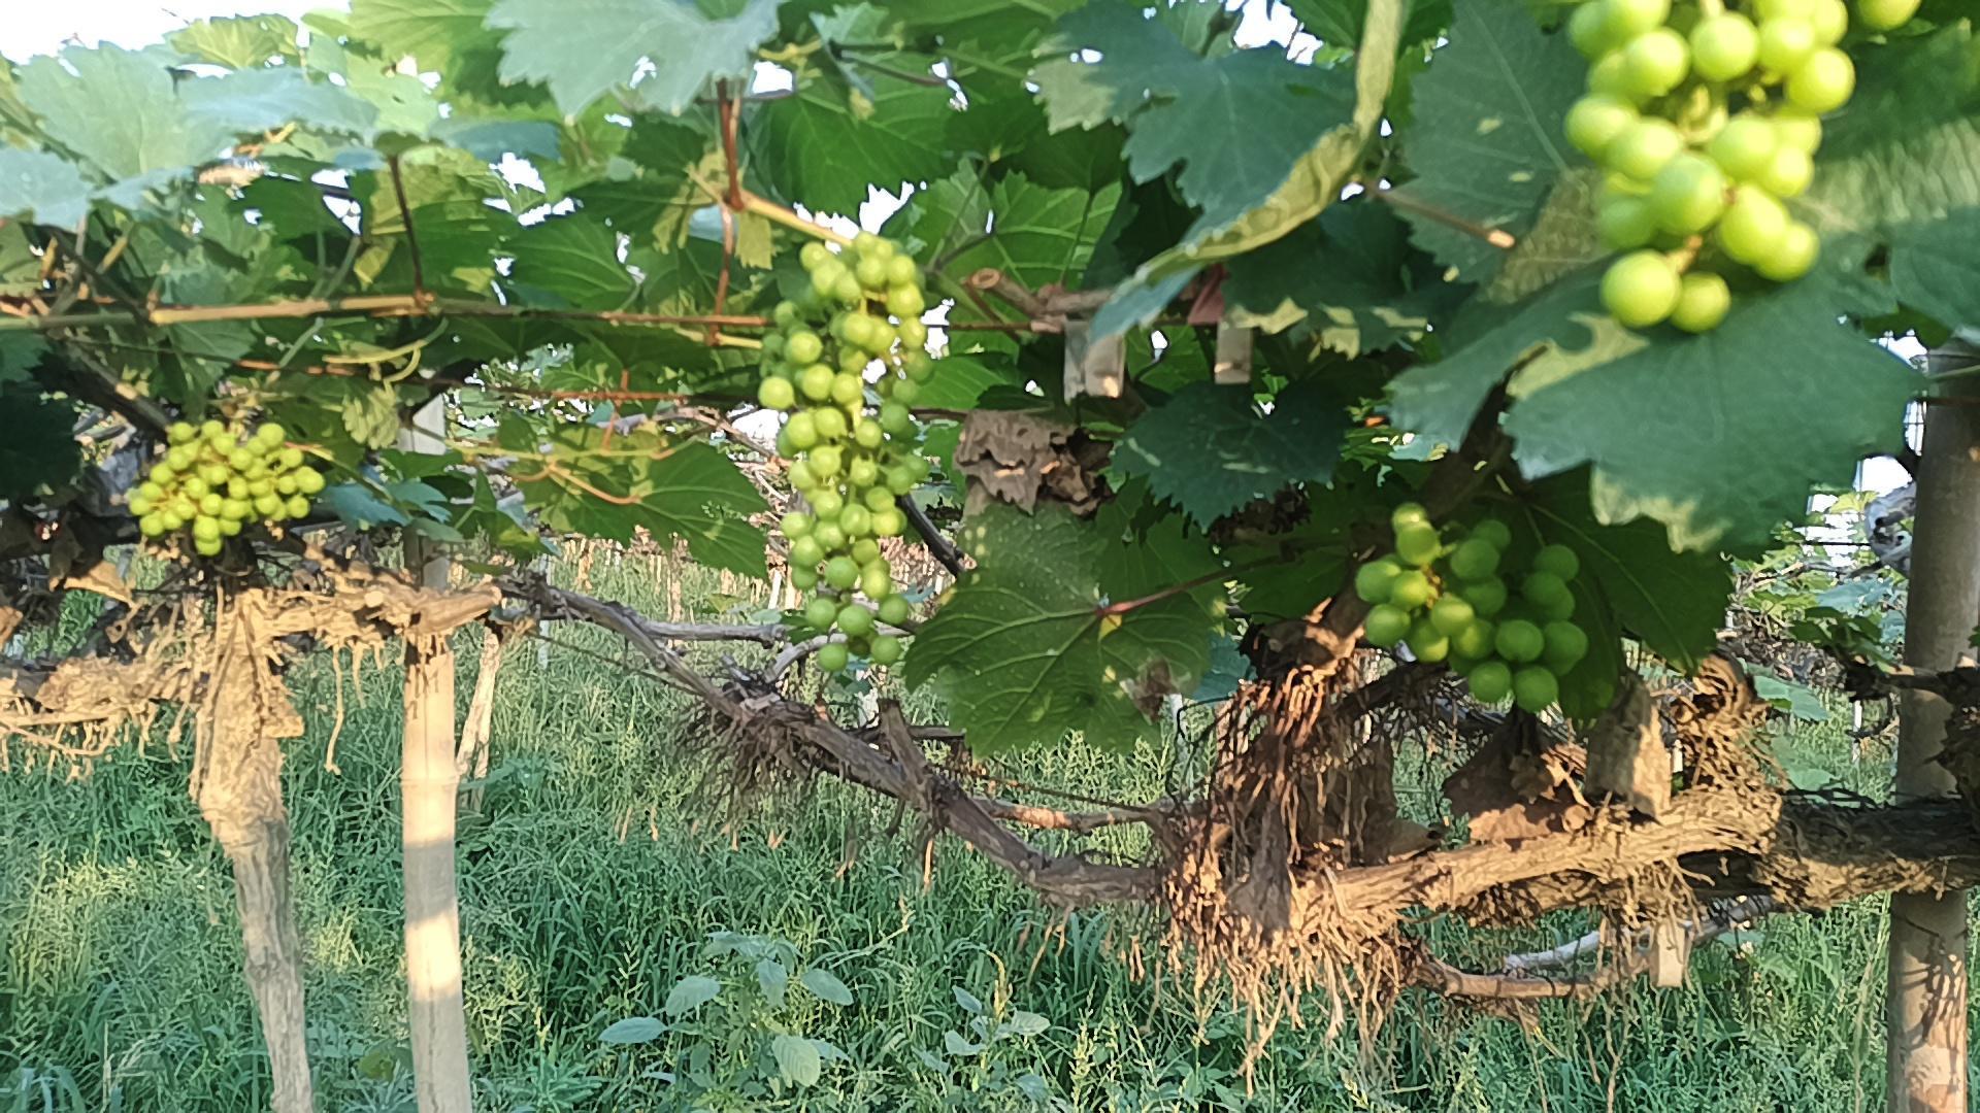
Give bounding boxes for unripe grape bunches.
[1355,503,1591,710]
[126,419,325,554]
[759,233,929,671]
[1560,0,1857,333]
